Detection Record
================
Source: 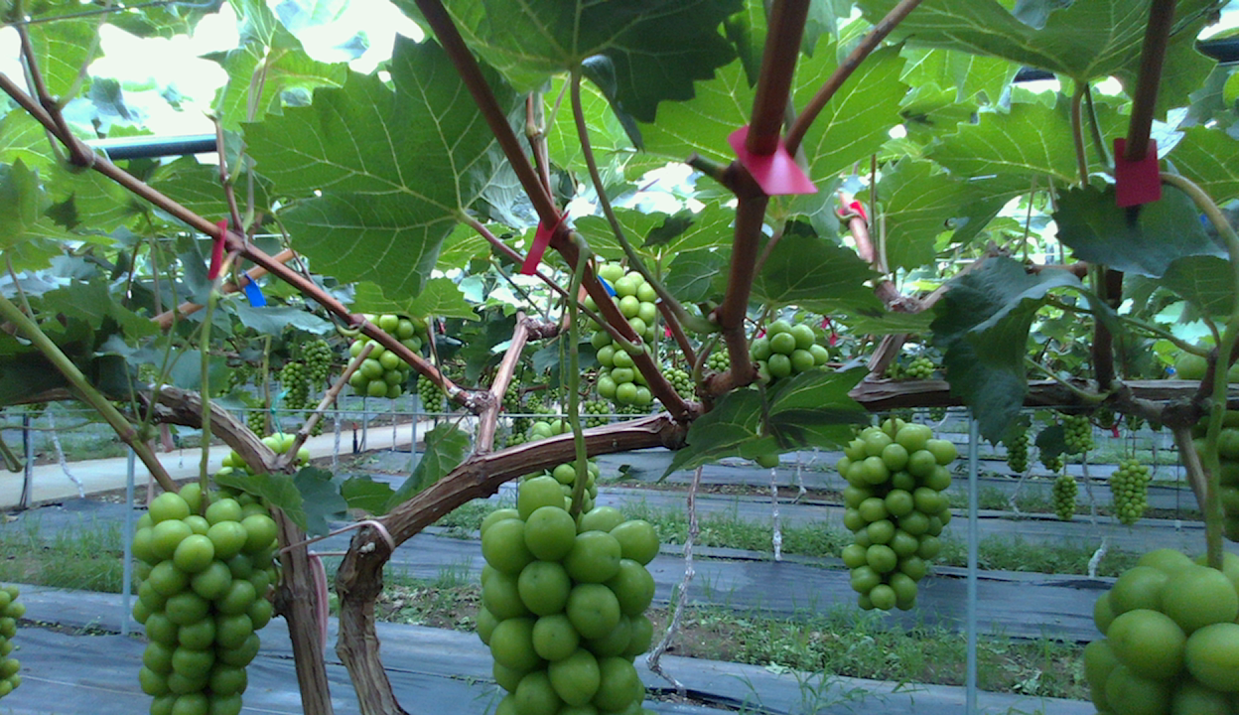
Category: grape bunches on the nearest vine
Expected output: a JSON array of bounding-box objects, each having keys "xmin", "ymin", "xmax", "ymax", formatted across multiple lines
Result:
[
  {"xmin": 1082, "ymin": 549, "xmax": 1238, "ymax": 713},
  {"xmin": 478, "ymin": 472, "xmax": 659, "ymax": 714},
  {"xmin": 131, "ymin": 483, "xmax": 276, "ymax": 713}
]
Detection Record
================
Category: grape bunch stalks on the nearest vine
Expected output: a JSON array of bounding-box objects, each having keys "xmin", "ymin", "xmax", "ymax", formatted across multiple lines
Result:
[
  {"xmin": 201, "ymin": 253, "xmax": 234, "ymax": 512},
  {"xmin": 566, "ymin": 234, "xmax": 587, "ymax": 523},
  {"xmin": 1166, "ymin": 175, "xmax": 1238, "ymax": 569}
]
